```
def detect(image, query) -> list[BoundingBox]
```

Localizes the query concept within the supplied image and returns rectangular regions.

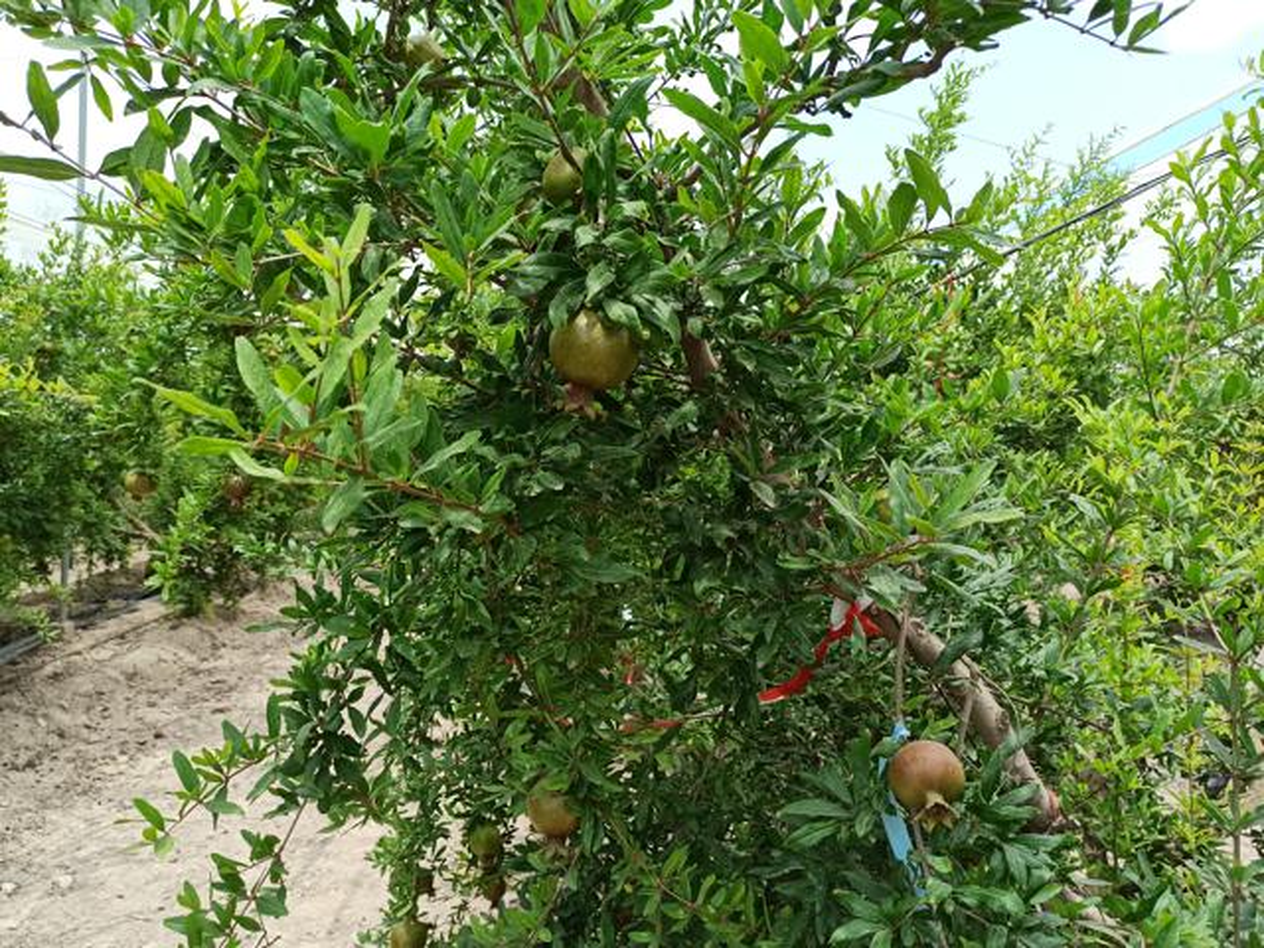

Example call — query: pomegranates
[525,782,579,835]
[407,34,452,73]
[225,482,249,508]
[543,146,589,203]
[391,918,429,948]
[468,824,502,865]
[547,306,642,391]
[417,865,438,901]
[482,881,508,910]
[122,470,160,502]
[887,739,968,835]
